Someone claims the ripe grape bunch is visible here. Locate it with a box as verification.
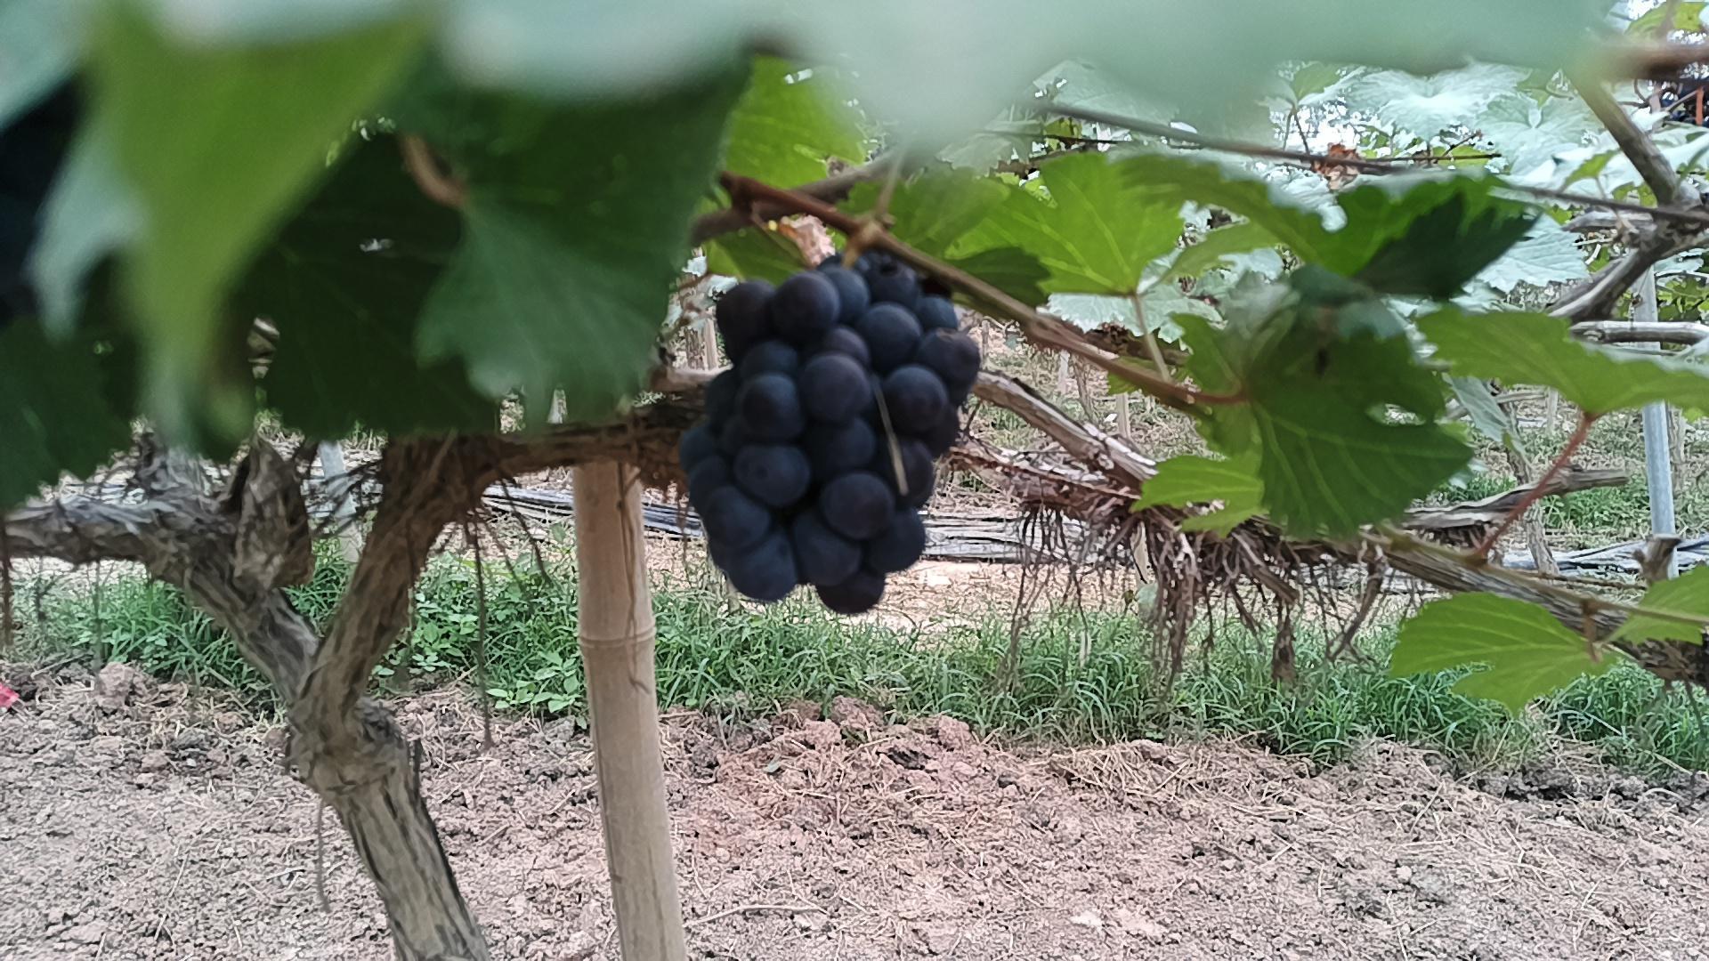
[682,251,979,614]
